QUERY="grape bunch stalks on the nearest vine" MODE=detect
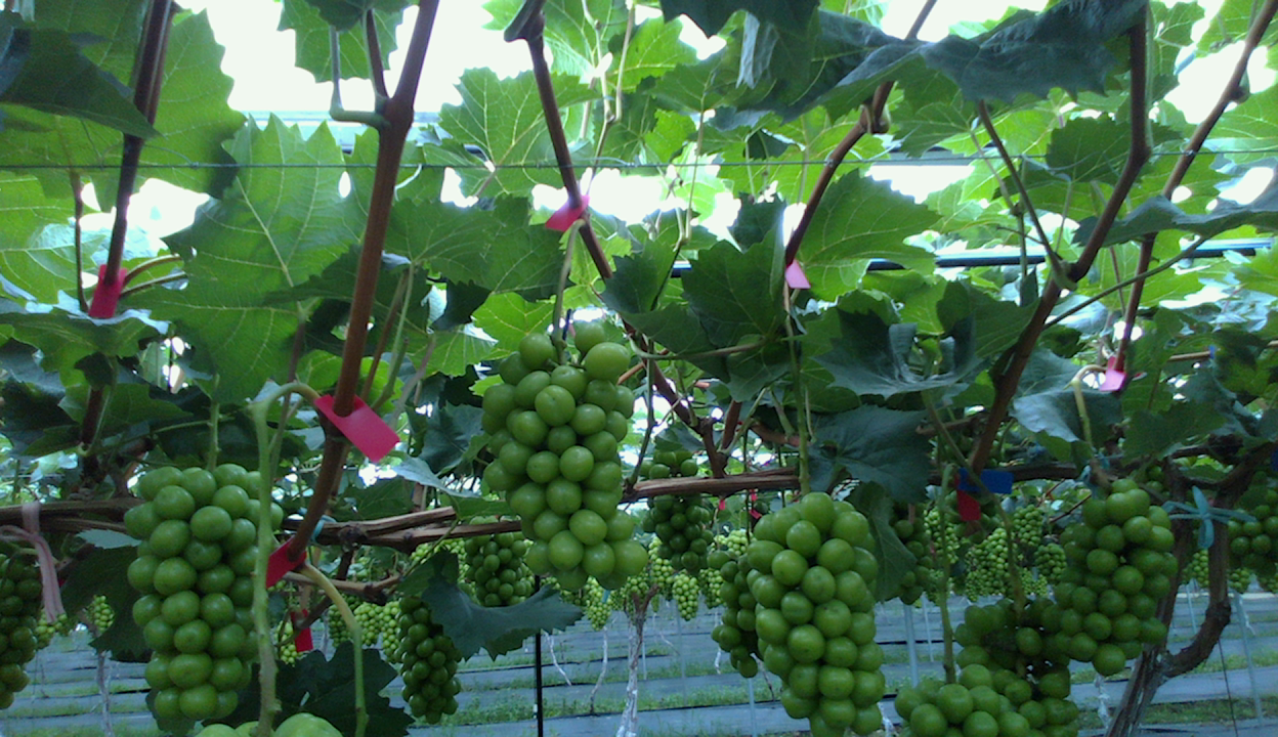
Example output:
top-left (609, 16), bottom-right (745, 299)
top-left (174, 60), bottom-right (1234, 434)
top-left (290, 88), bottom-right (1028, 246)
top-left (207, 404), bottom-right (220, 467)
top-left (1064, 363), bottom-right (1111, 491)
top-left (553, 222), bottom-right (584, 363)
top-left (929, 405), bottom-right (1025, 611)
top-left (938, 464), bottom-right (954, 683)
top-left (253, 382), bottom-right (314, 733)
top-left (783, 281), bottom-right (809, 491)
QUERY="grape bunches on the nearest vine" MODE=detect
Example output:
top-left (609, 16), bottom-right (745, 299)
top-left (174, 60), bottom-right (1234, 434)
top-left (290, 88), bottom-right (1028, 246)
top-left (743, 491), bottom-right (886, 736)
top-left (896, 663), bottom-right (1032, 736)
top-left (955, 598), bottom-right (1079, 736)
top-left (197, 712), bottom-right (339, 736)
top-left (1049, 479), bottom-right (1181, 677)
top-left (125, 464), bottom-right (257, 724)
top-left (478, 321), bottom-right (649, 592)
